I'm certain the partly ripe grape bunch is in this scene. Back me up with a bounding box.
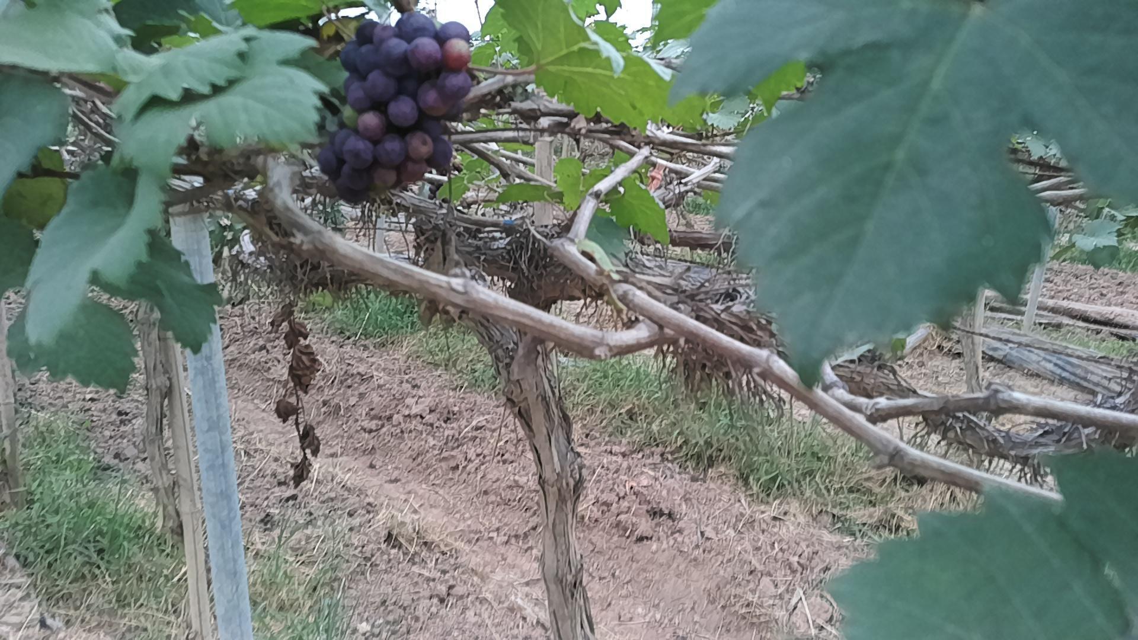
[318,11,472,202]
